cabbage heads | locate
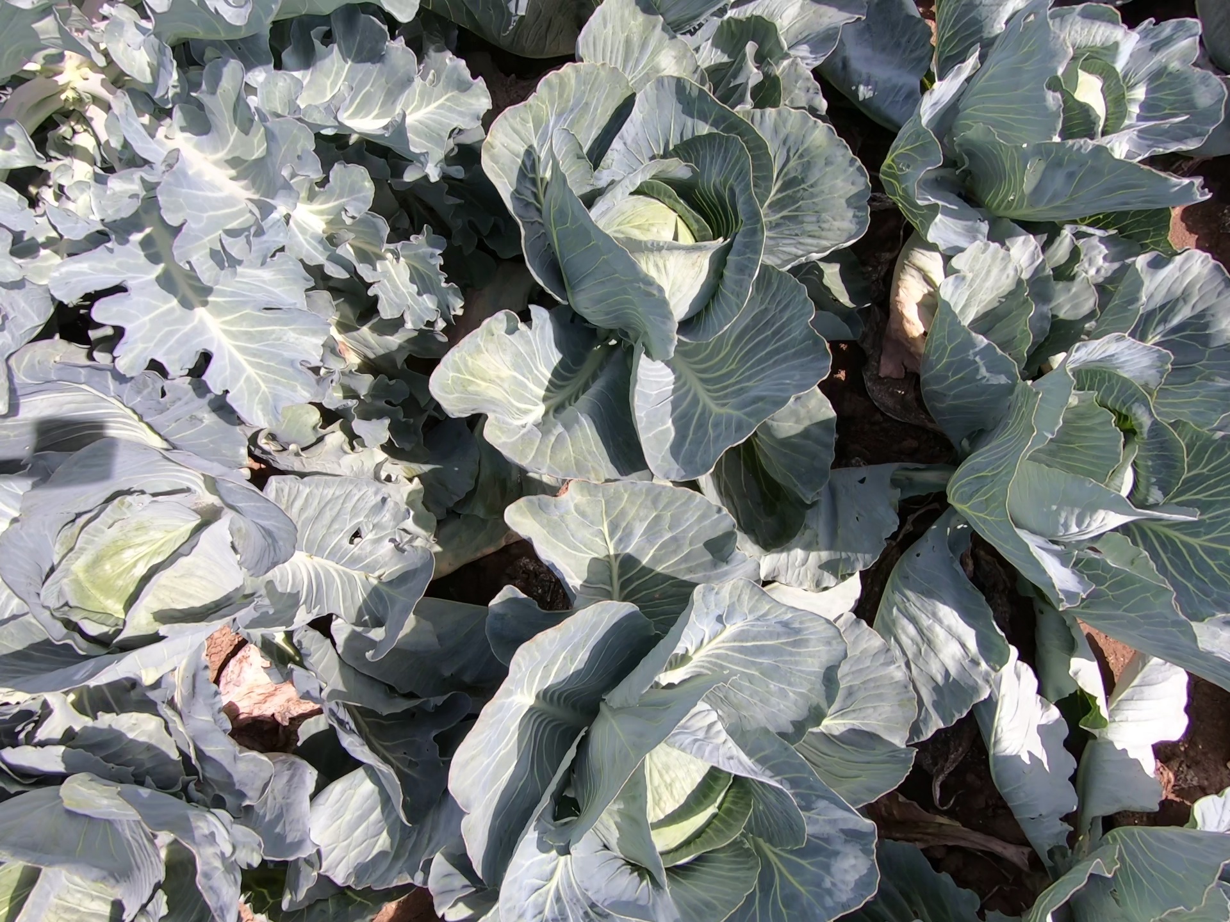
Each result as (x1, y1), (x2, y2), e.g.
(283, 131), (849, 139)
(2, 780), (166, 920)
(580, 690), (740, 870)
(1008, 423), (1133, 535)
(1022, 67), (1107, 158)
(51, 499), (234, 647)
(587, 188), (715, 323)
